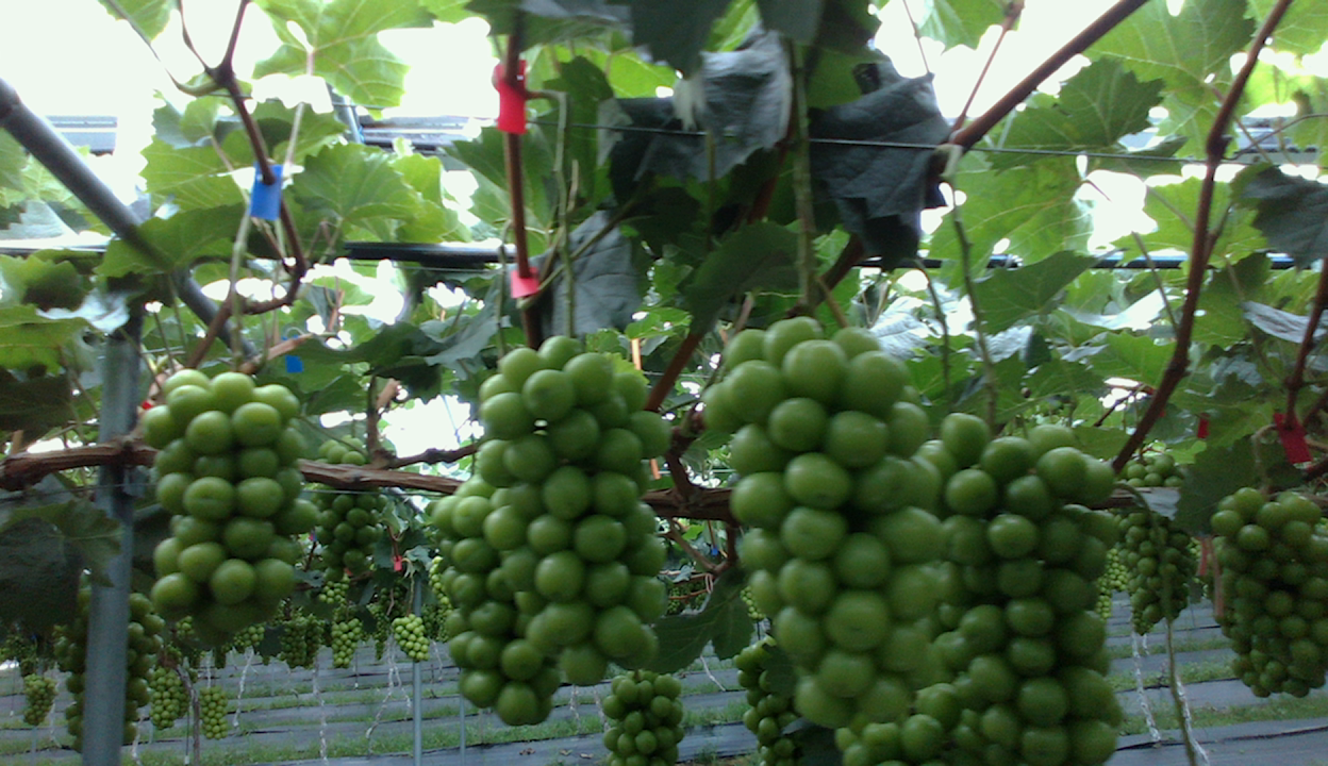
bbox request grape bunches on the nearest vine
[432,474,566,727]
[477,335,671,687]
[913,413,1124,764]
[1211,488,1327,699]
[142,369,318,646]
[704,315,943,730]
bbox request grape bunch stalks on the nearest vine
[529,89,575,337]
[231,209,252,371]
[939,141,996,436]
[786,40,818,318]
[1251,423,1277,499]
